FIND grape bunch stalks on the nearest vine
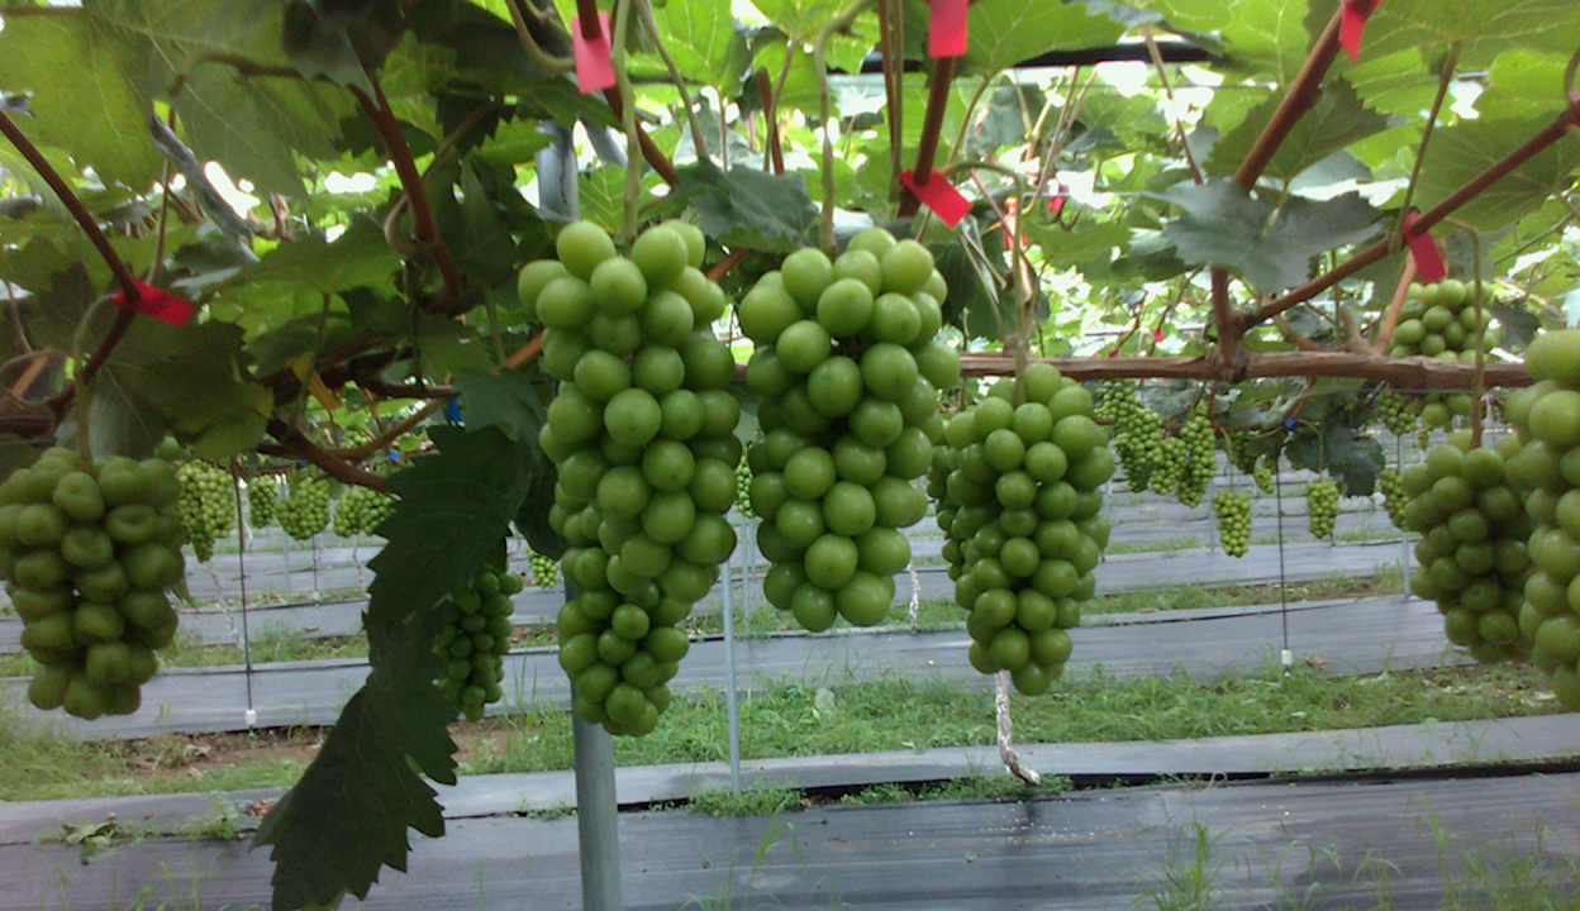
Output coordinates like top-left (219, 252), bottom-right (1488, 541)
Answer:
top-left (72, 294), bottom-right (114, 476)
top-left (1443, 219), bottom-right (1485, 447)
top-left (613, 0), bottom-right (639, 251)
top-left (814, 1), bottom-right (870, 258)
top-left (947, 161), bottom-right (1027, 406)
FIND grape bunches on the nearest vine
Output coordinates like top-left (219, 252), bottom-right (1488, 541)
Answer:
top-left (947, 363), bottom-right (1117, 696)
top-left (1403, 428), bottom-right (1534, 663)
top-left (0, 448), bottom-right (182, 721)
top-left (743, 226), bottom-right (960, 631)
top-left (1505, 328), bottom-right (1579, 711)
top-left (517, 219), bottom-right (743, 606)
top-left (552, 492), bottom-right (689, 739)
